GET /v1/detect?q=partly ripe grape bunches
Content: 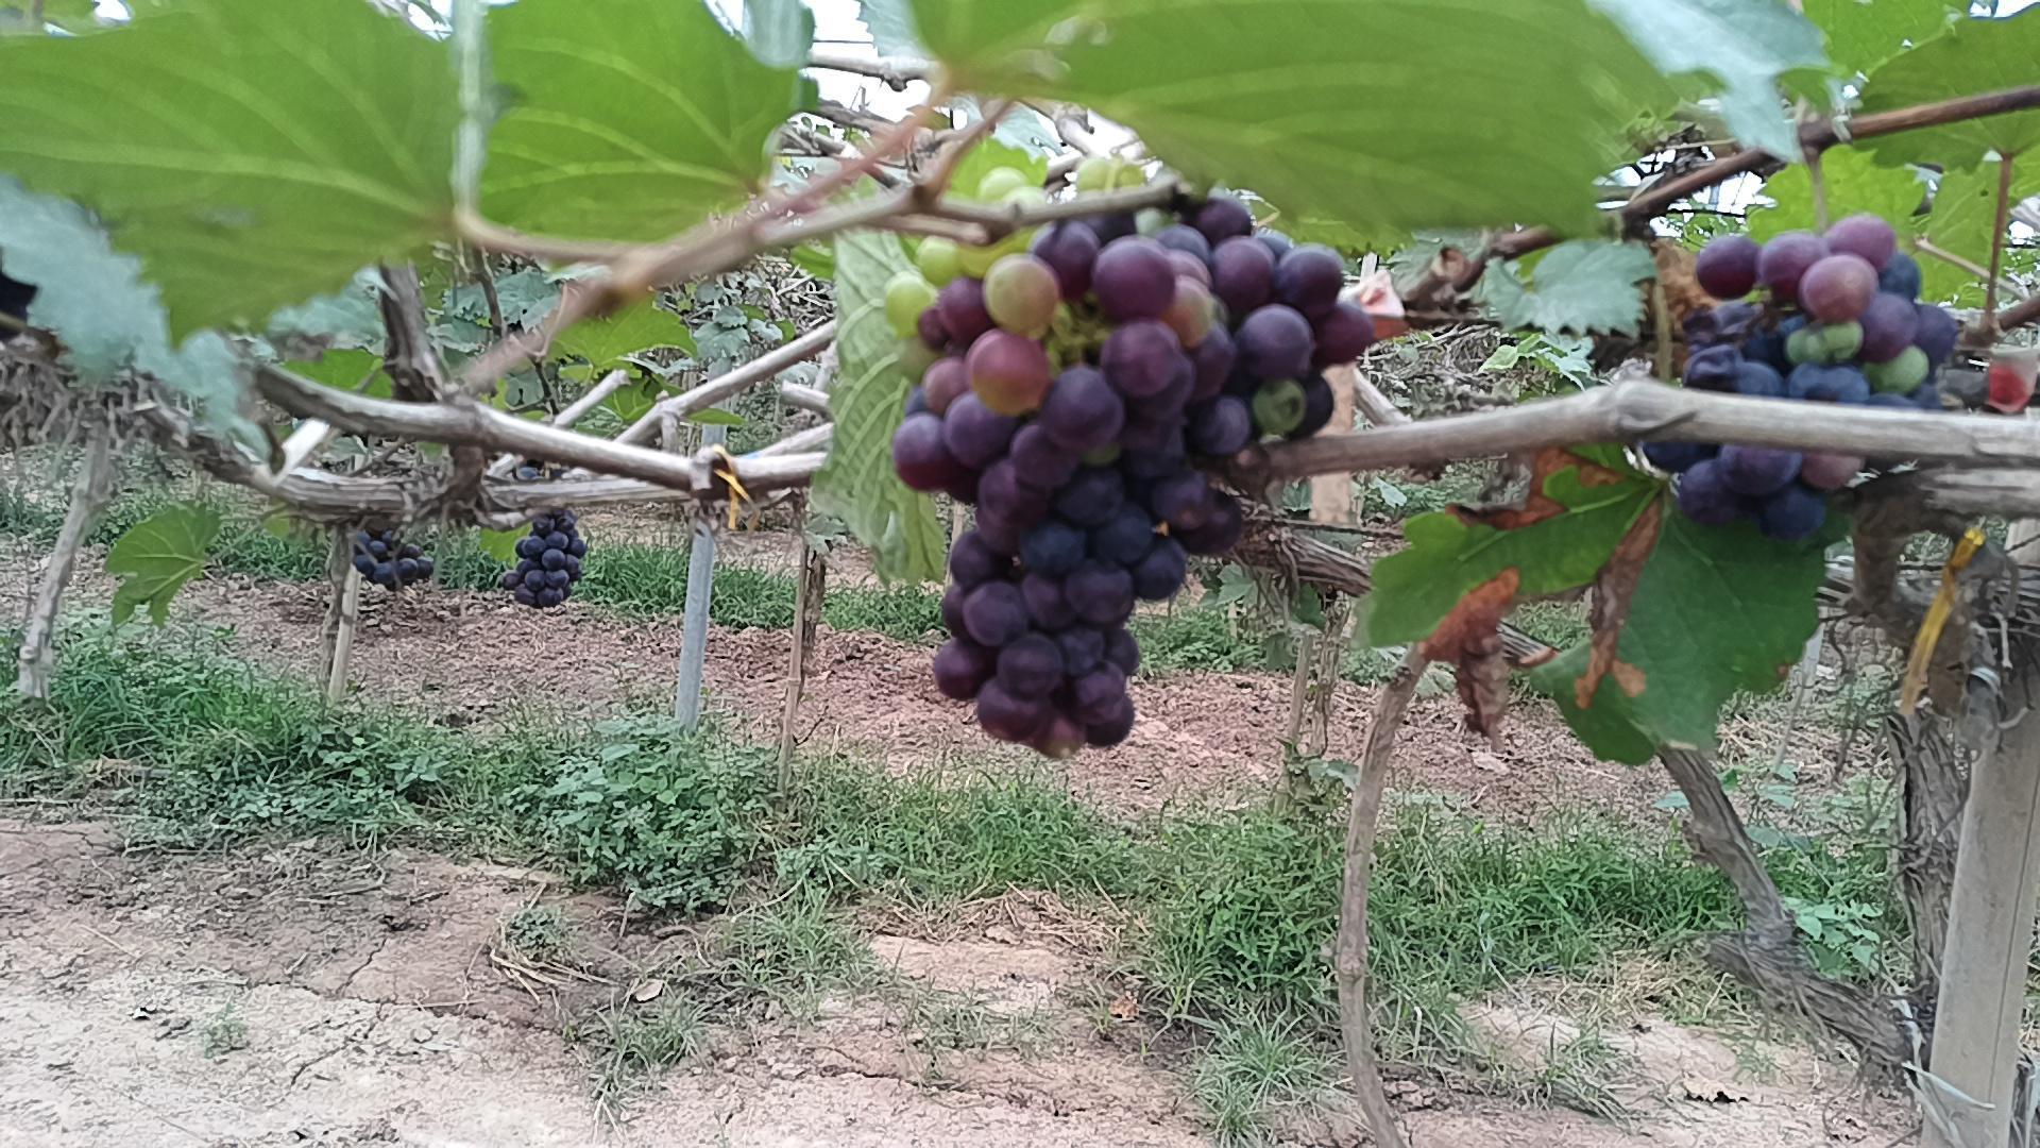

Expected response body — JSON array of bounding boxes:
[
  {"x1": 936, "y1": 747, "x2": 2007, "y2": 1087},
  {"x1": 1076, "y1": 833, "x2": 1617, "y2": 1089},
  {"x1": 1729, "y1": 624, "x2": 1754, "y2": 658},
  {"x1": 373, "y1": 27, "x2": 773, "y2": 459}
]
[
  {"x1": 1640, "y1": 214, "x2": 1957, "y2": 540},
  {"x1": 882, "y1": 153, "x2": 1372, "y2": 757}
]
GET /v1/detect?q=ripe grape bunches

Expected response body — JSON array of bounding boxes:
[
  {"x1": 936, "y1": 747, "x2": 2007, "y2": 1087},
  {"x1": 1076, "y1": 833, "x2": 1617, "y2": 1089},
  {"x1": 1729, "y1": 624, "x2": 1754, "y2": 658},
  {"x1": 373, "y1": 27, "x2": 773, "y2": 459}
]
[
  {"x1": 498, "y1": 509, "x2": 586, "y2": 607},
  {"x1": 351, "y1": 522, "x2": 433, "y2": 591}
]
